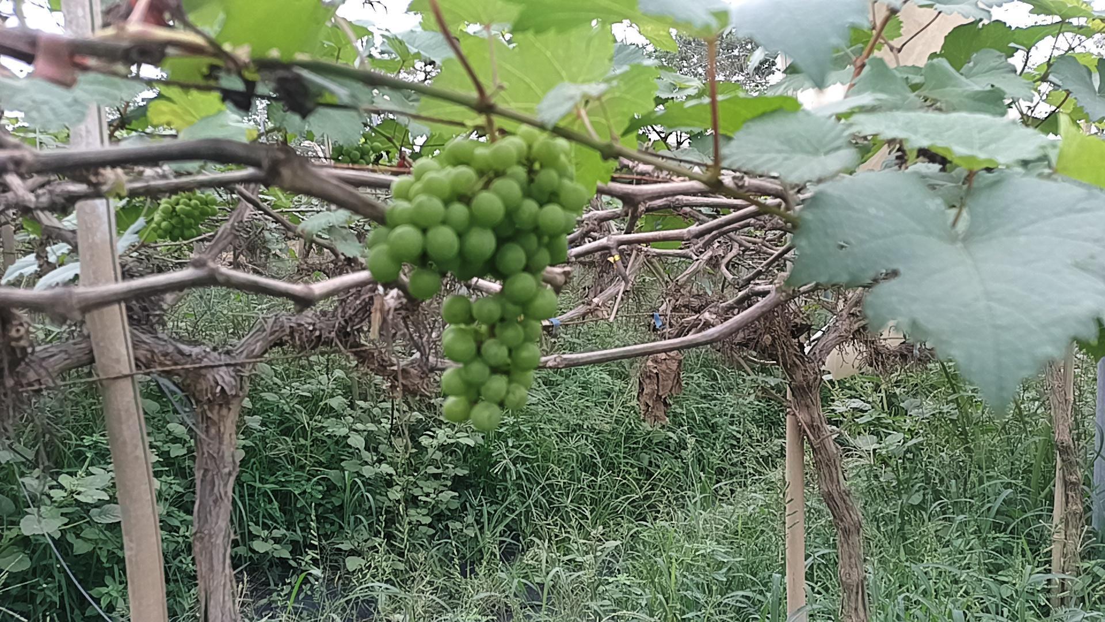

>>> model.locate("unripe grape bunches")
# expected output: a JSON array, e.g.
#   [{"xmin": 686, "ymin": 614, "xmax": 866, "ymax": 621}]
[
  {"xmin": 150, "ymin": 190, "xmax": 219, "ymax": 242},
  {"xmin": 330, "ymin": 131, "xmax": 383, "ymax": 164},
  {"xmin": 367, "ymin": 123, "xmax": 588, "ymax": 431}
]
